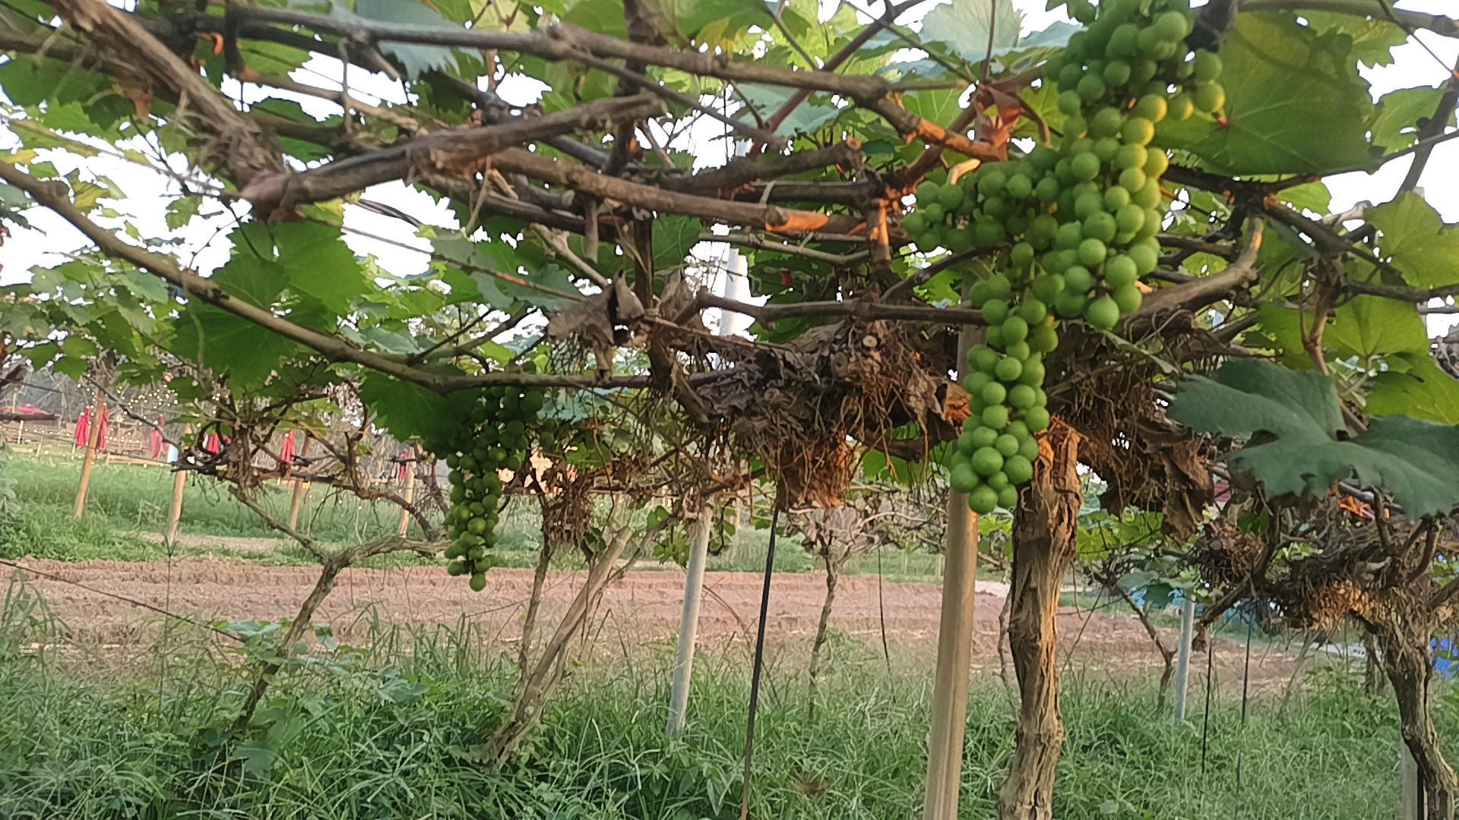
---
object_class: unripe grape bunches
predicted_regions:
[904,146,1058,514]
[420,360,560,591]
[1025,0,1225,329]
